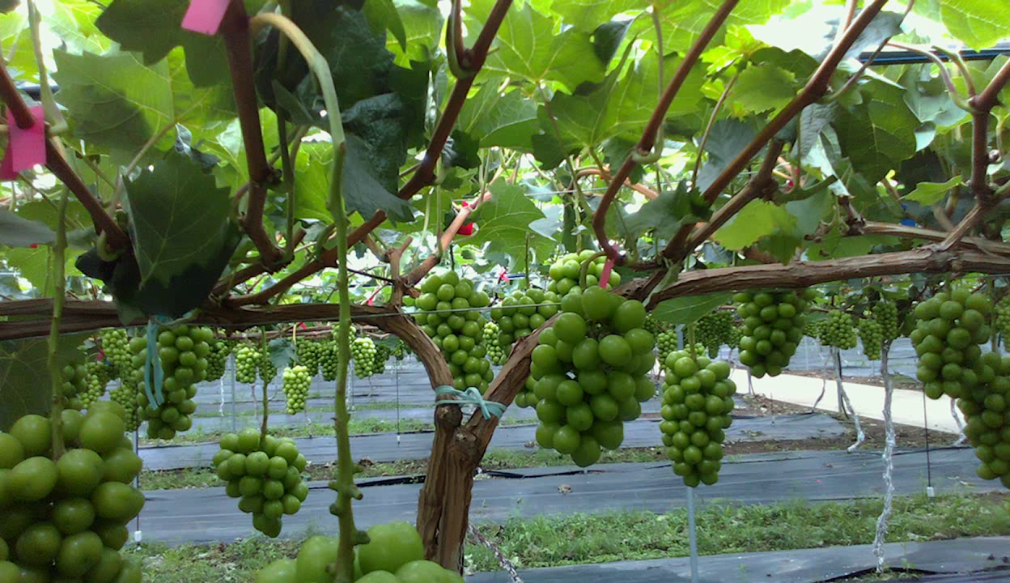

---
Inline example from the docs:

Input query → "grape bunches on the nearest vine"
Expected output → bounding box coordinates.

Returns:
[530,285,656,467]
[257,521,466,582]
[0,398,144,582]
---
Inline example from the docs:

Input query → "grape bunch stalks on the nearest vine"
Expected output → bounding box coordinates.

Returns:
[579,250,605,292]
[47,186,70,458]
[258,13,369,578]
